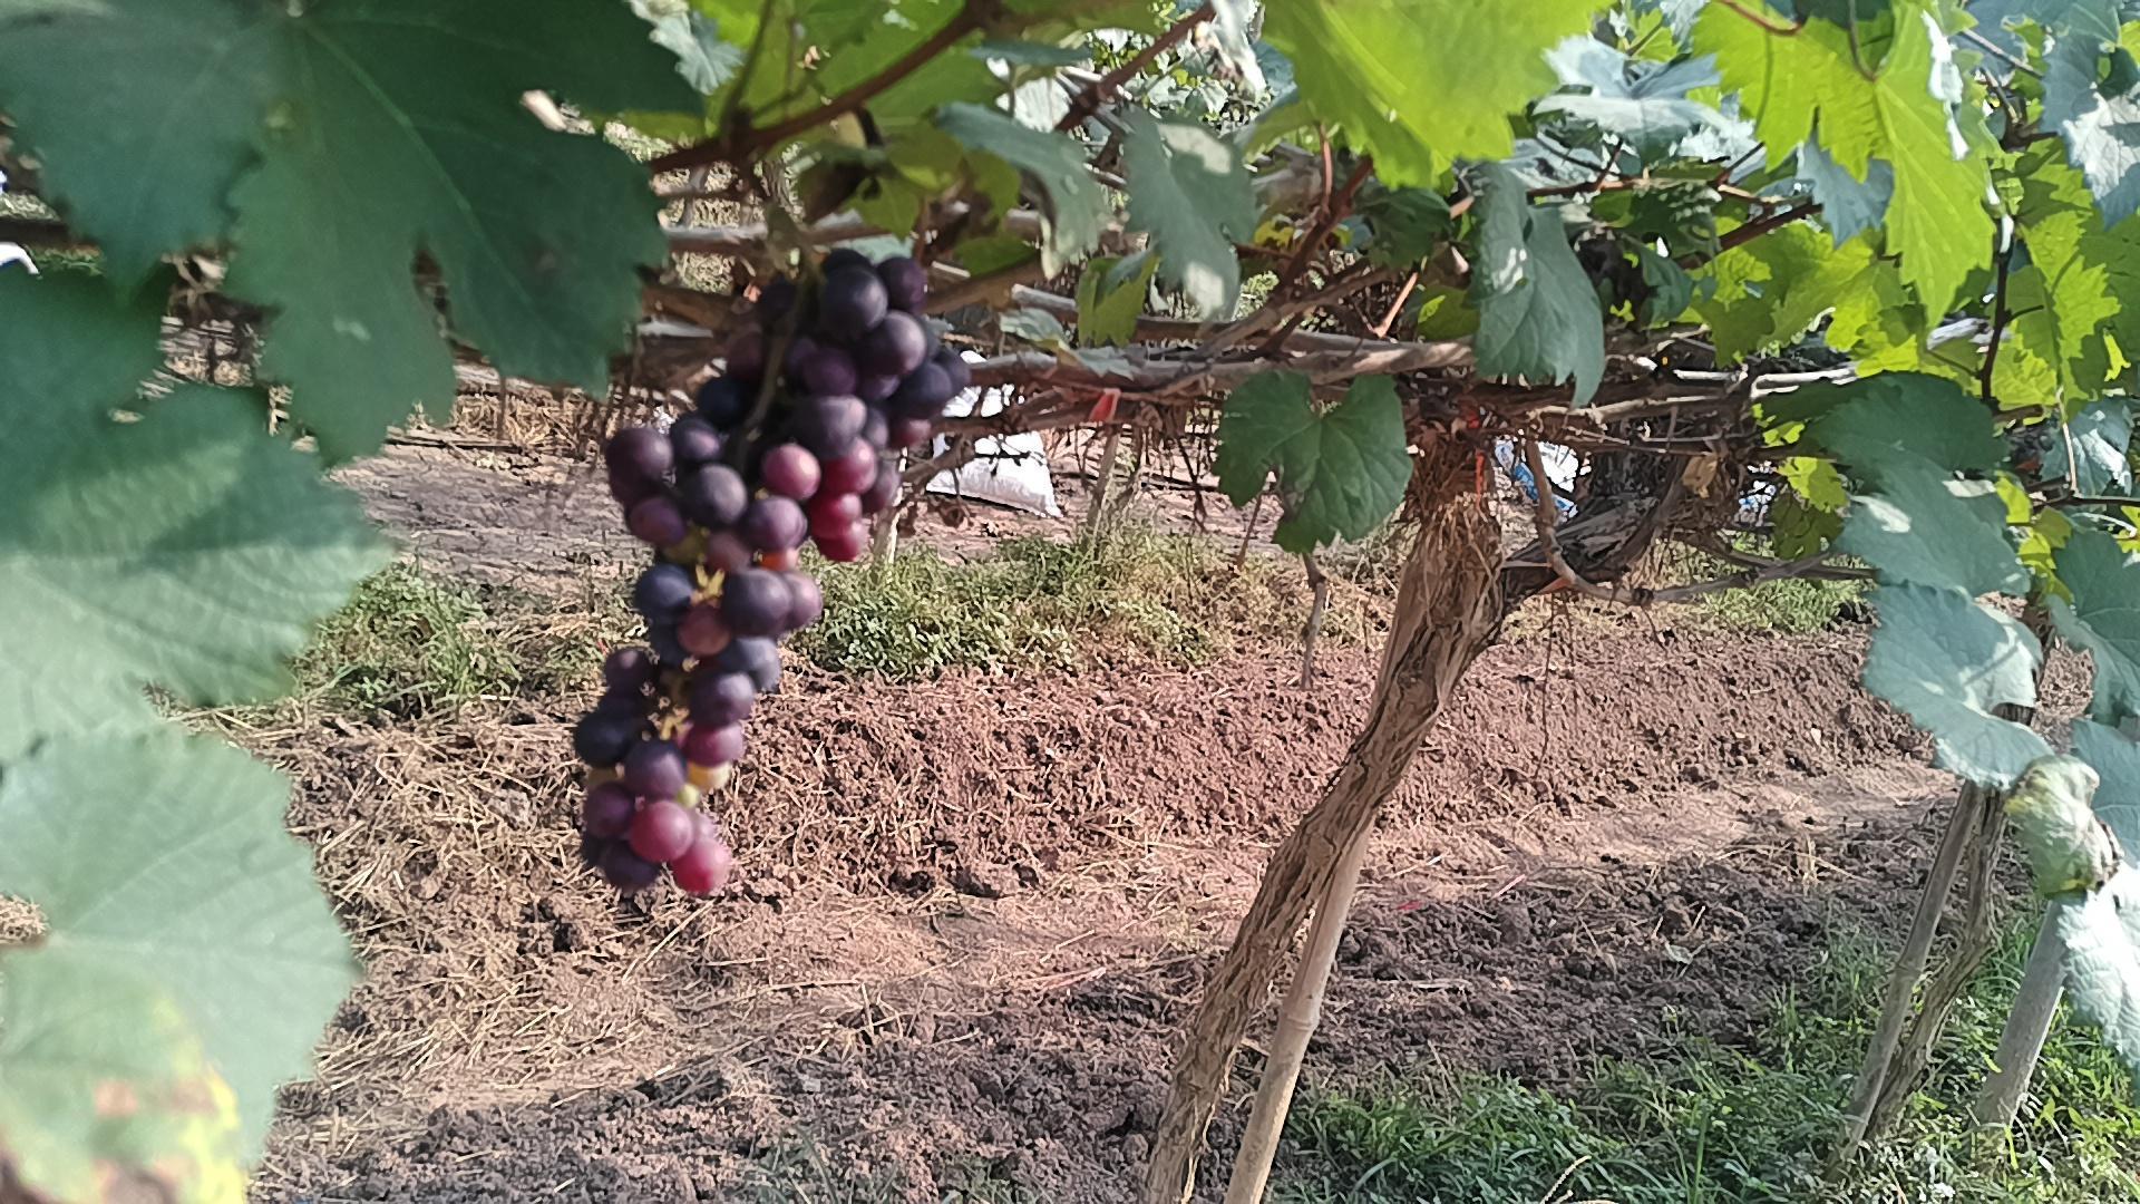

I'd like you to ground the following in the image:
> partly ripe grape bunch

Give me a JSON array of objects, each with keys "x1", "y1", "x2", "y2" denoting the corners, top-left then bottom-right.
[{"x1": 575, "y1": 249, "x2": 969, "y2": 894}]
